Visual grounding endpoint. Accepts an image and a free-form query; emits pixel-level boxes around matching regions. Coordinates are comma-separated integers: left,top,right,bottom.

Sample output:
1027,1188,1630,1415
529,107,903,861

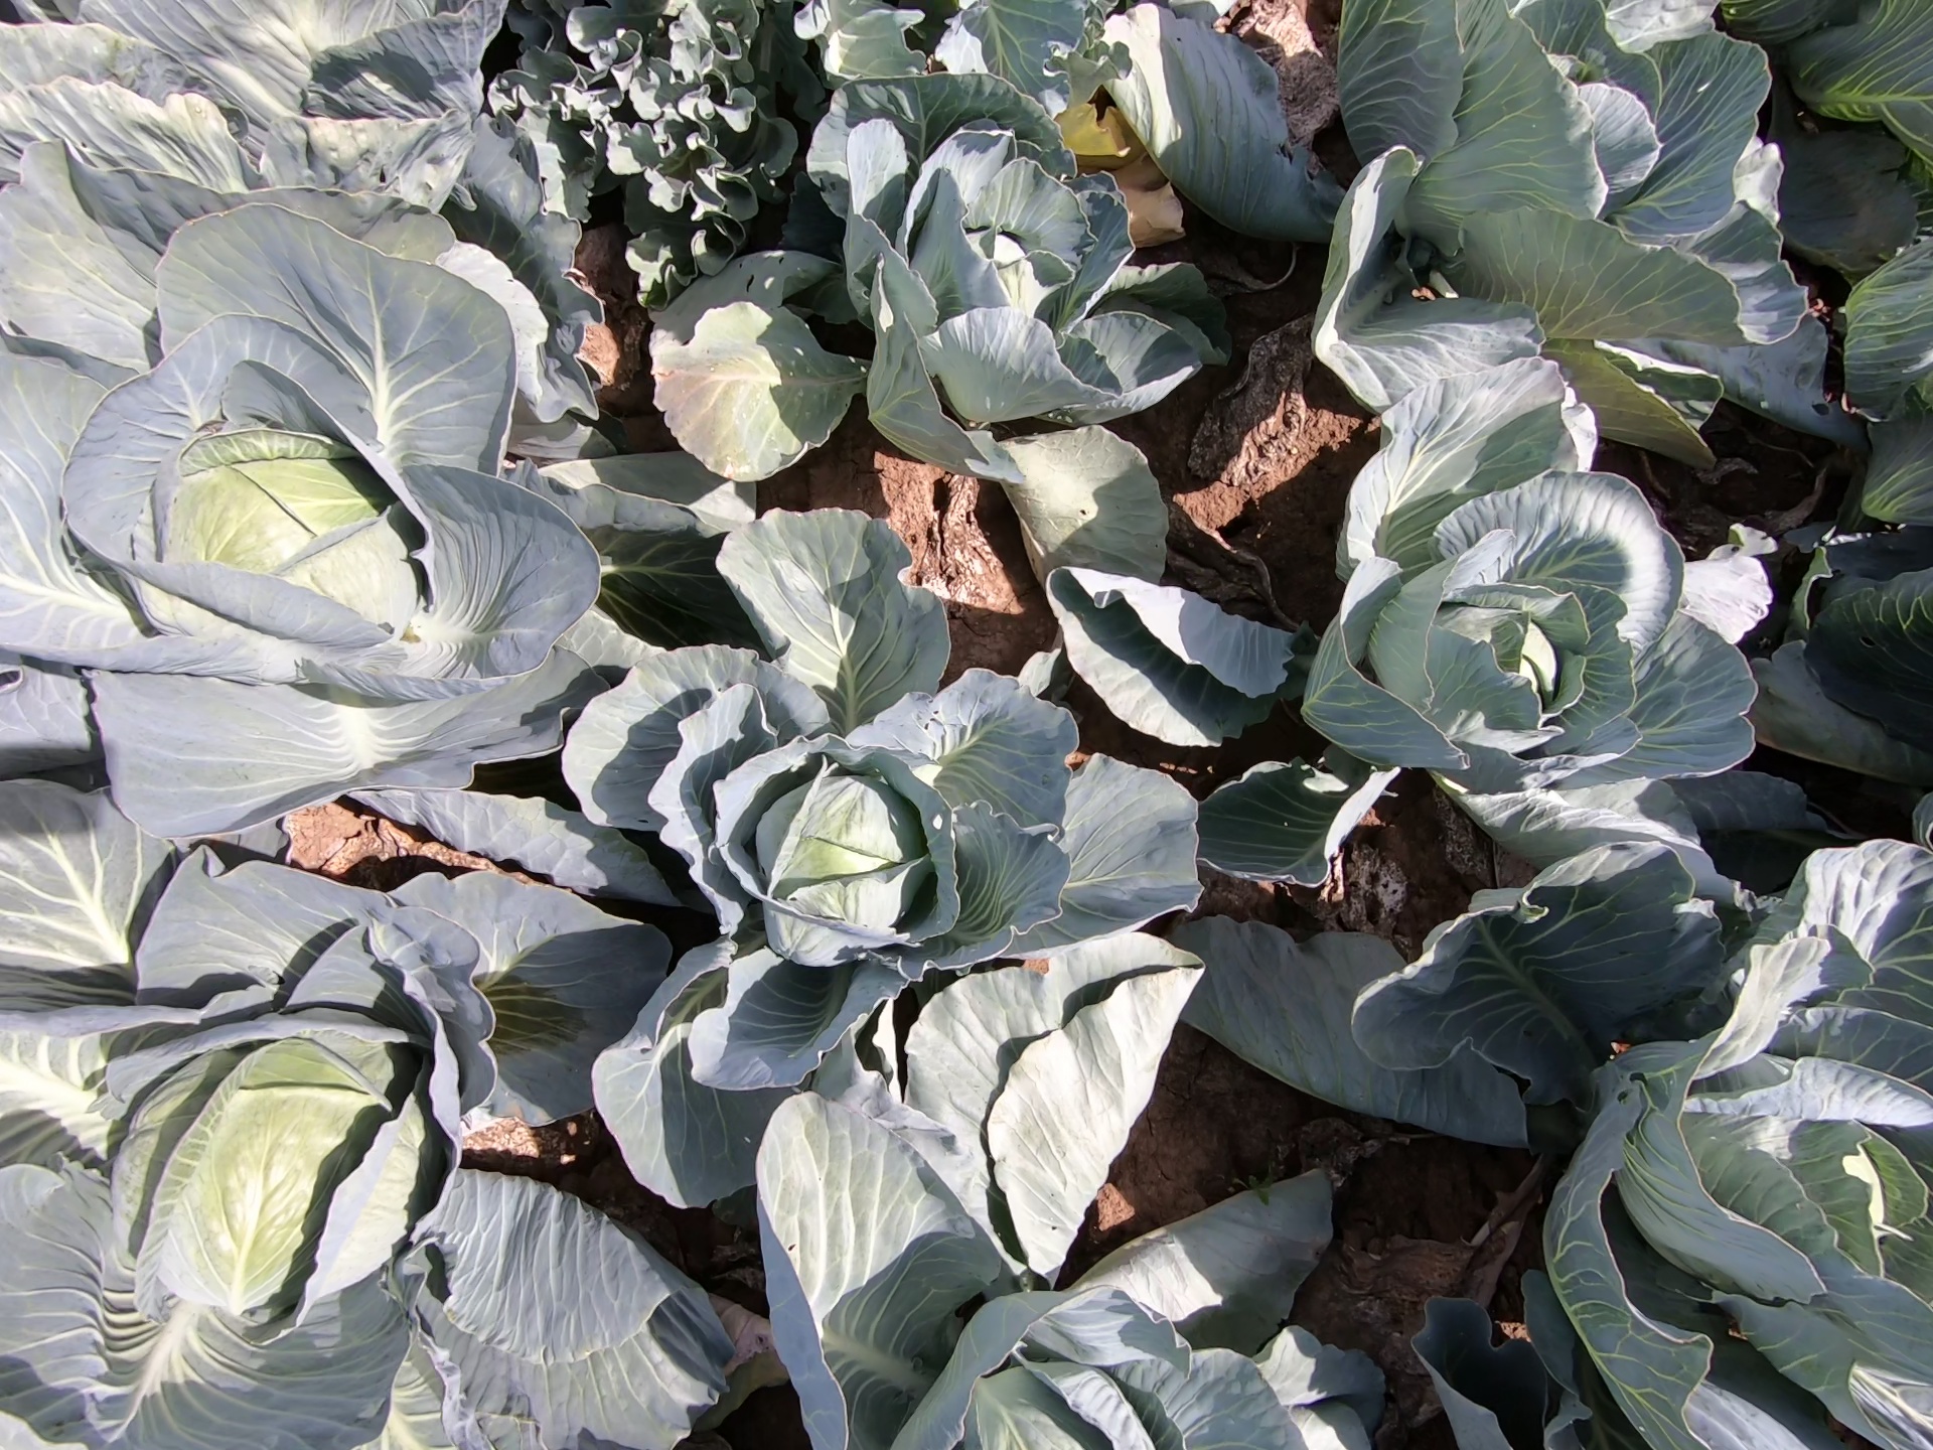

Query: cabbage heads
114,1014,428,1311
1442,56,1633,238
922,1365,1150,1442
923,227,1042,351
1426,601,1557,743
1661,1055,1887,1260
755,777,932,947
151,439,431,664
